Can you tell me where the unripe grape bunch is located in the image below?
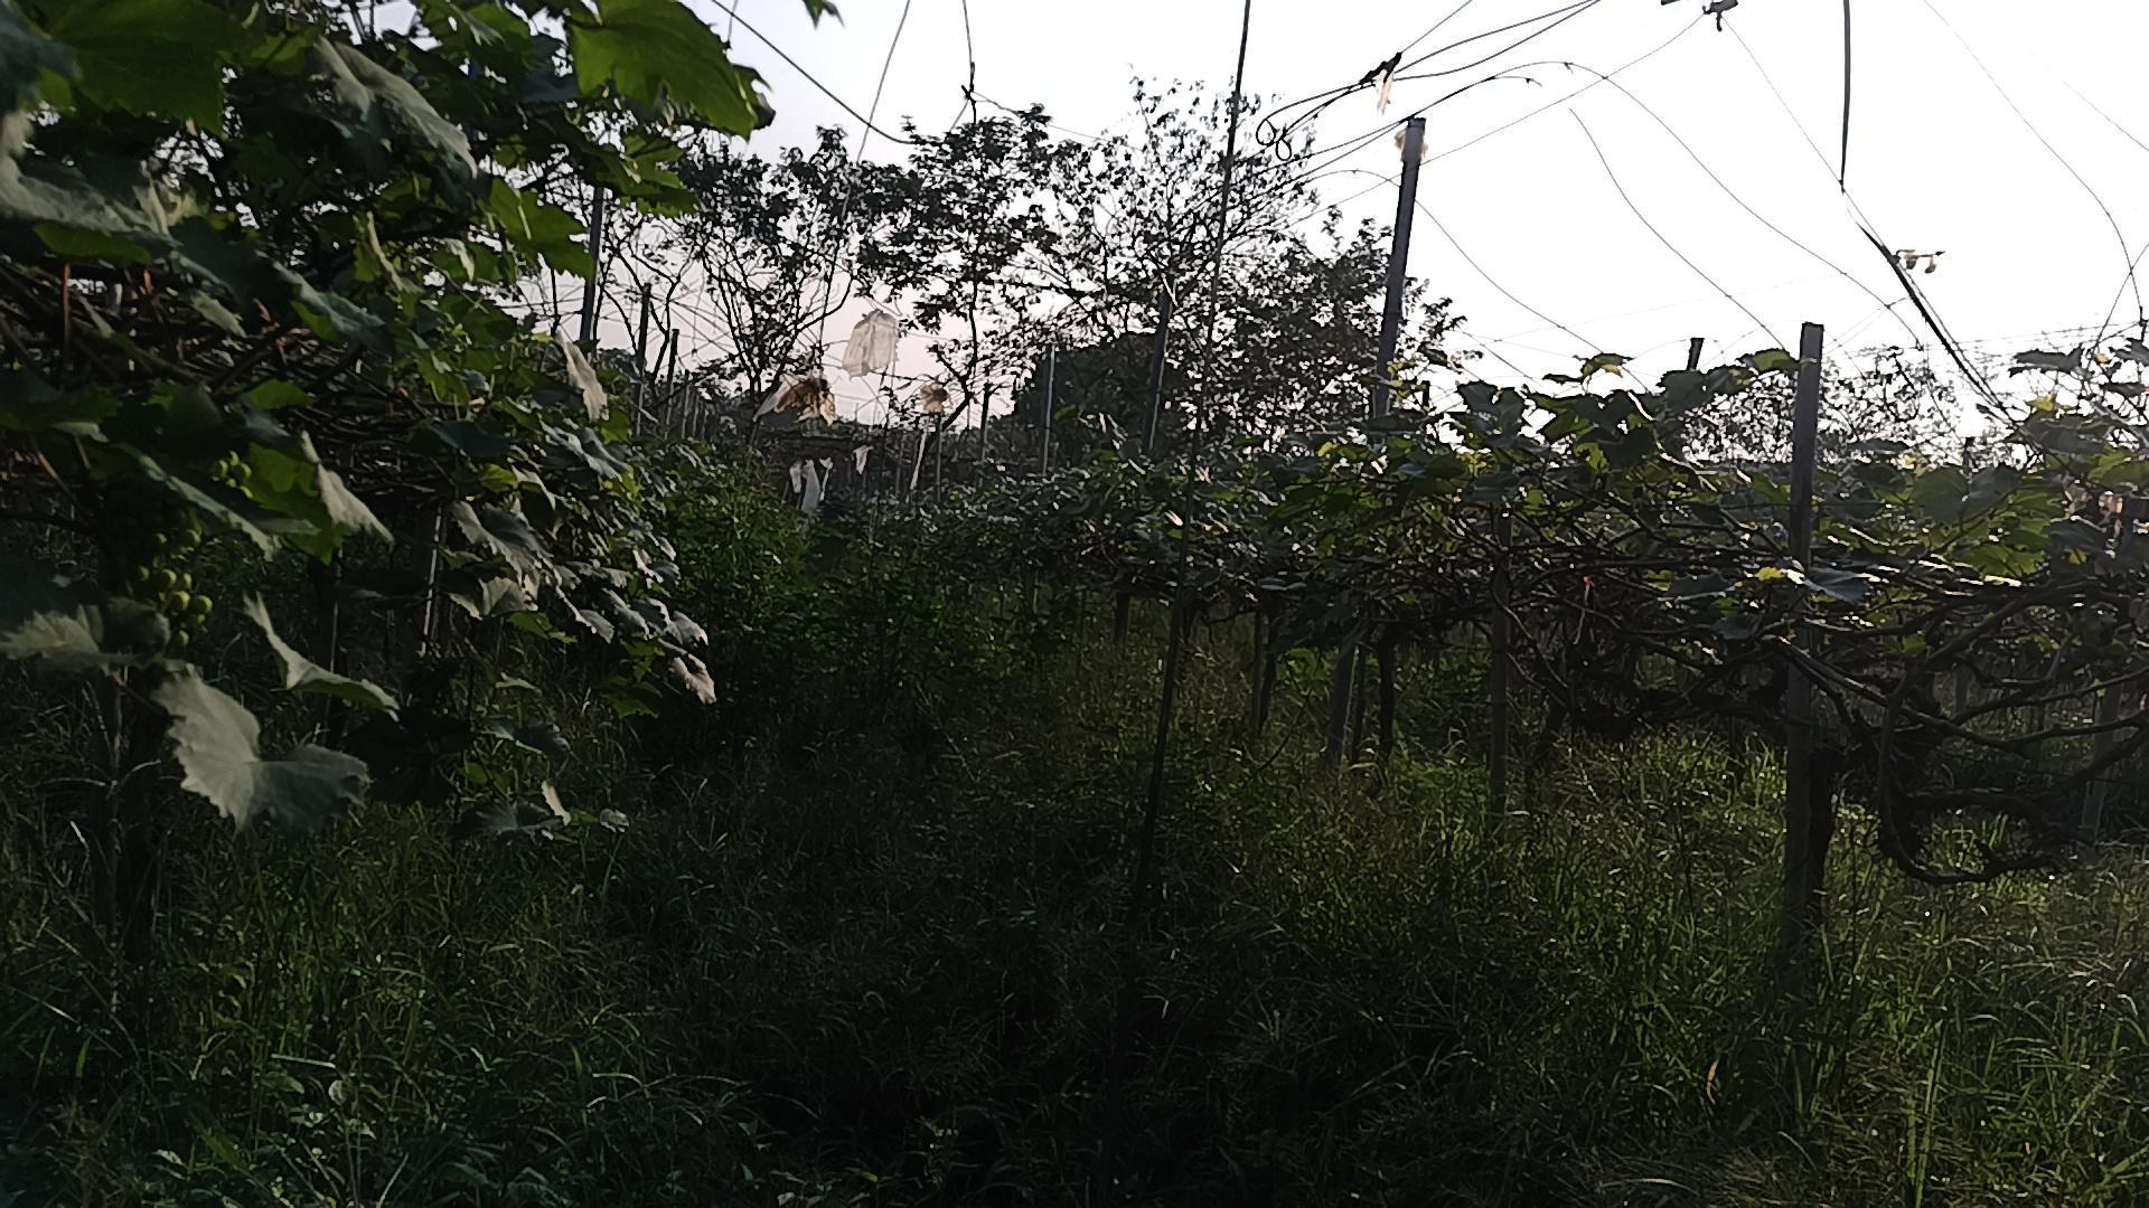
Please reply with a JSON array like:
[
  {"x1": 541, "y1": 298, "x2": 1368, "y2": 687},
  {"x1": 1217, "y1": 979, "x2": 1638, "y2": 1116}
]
[{"x1": 133, "y1": 452, "x2": 254, "y2": 648}]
